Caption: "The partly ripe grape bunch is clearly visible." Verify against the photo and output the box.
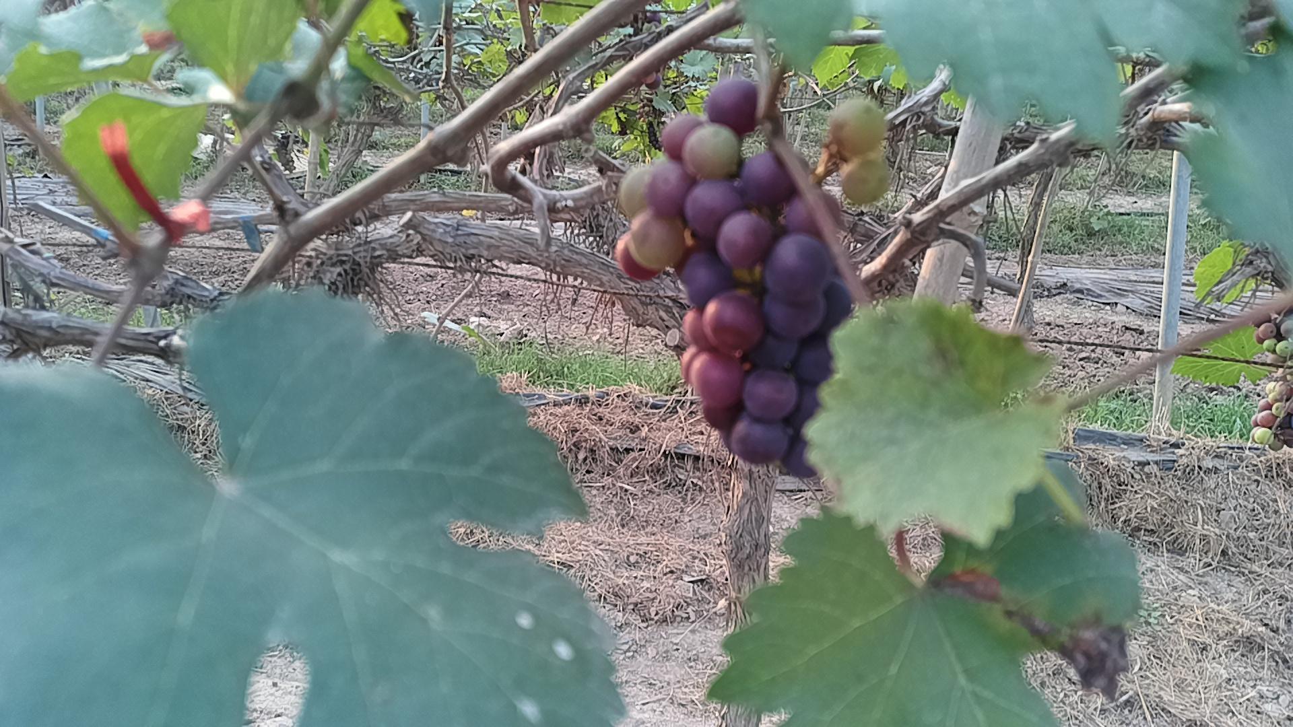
[614,77,894,481]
